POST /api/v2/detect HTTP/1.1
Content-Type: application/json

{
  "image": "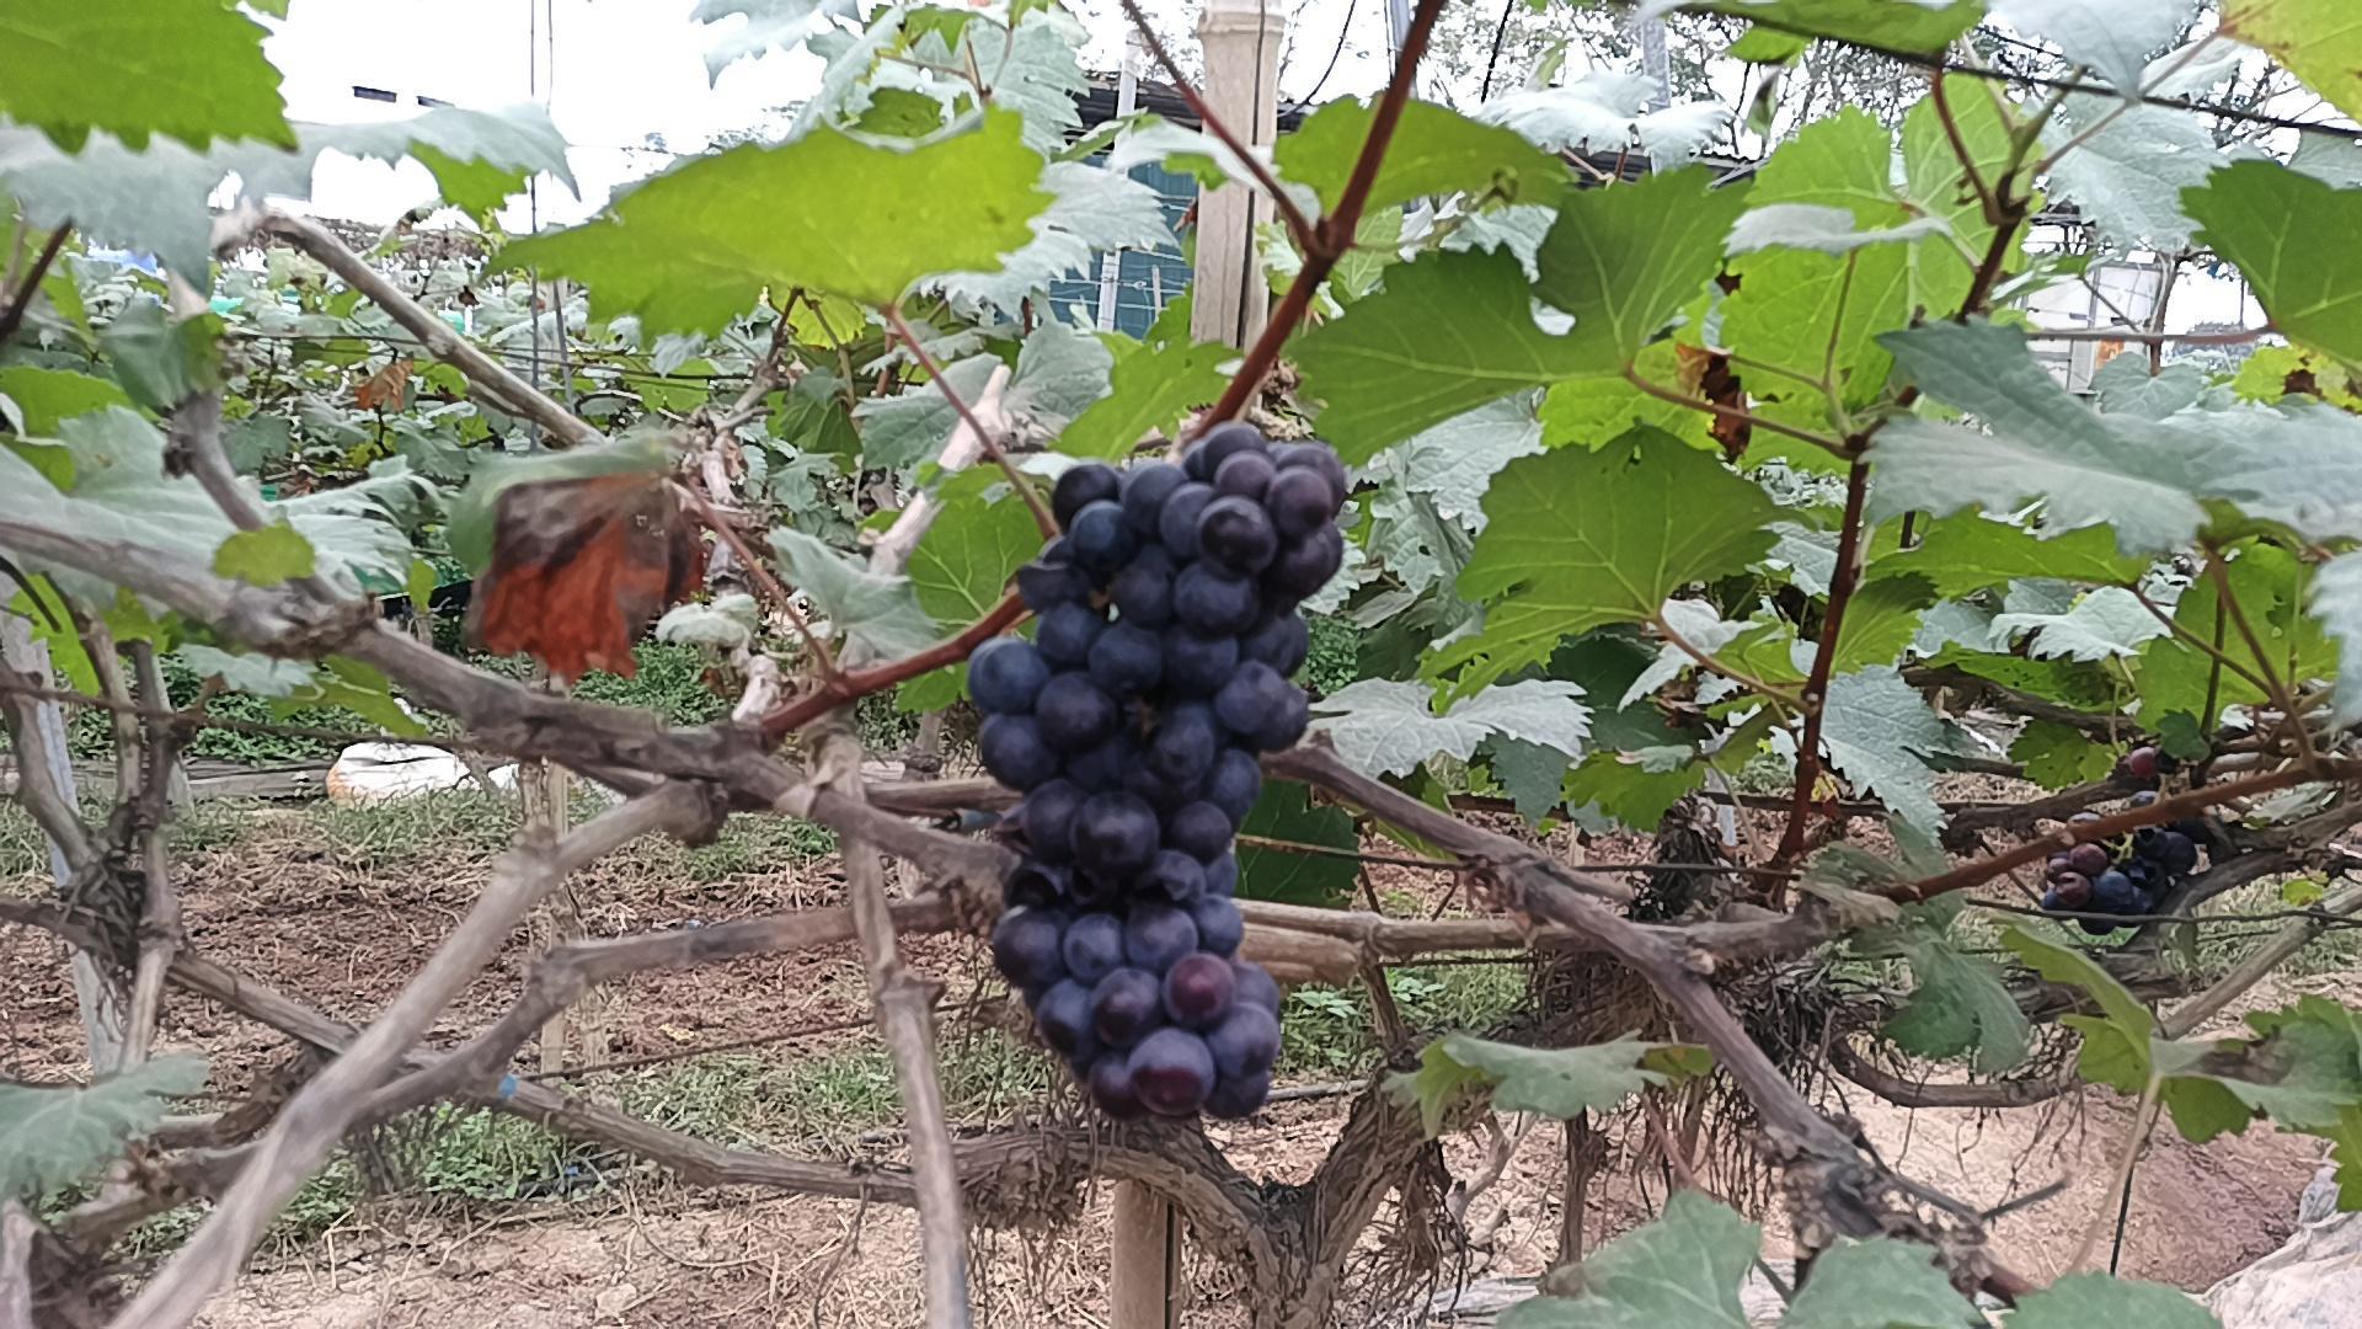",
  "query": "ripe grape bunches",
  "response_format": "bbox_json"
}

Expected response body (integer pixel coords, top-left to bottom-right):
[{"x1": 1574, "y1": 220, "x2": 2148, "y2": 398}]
[
  {"x1": 969, "y1": 423, "x2": 1346, "y2": 1117},
  {"x1": 2042, "y1": 742, "x2": 2227, "y2": 934}
]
